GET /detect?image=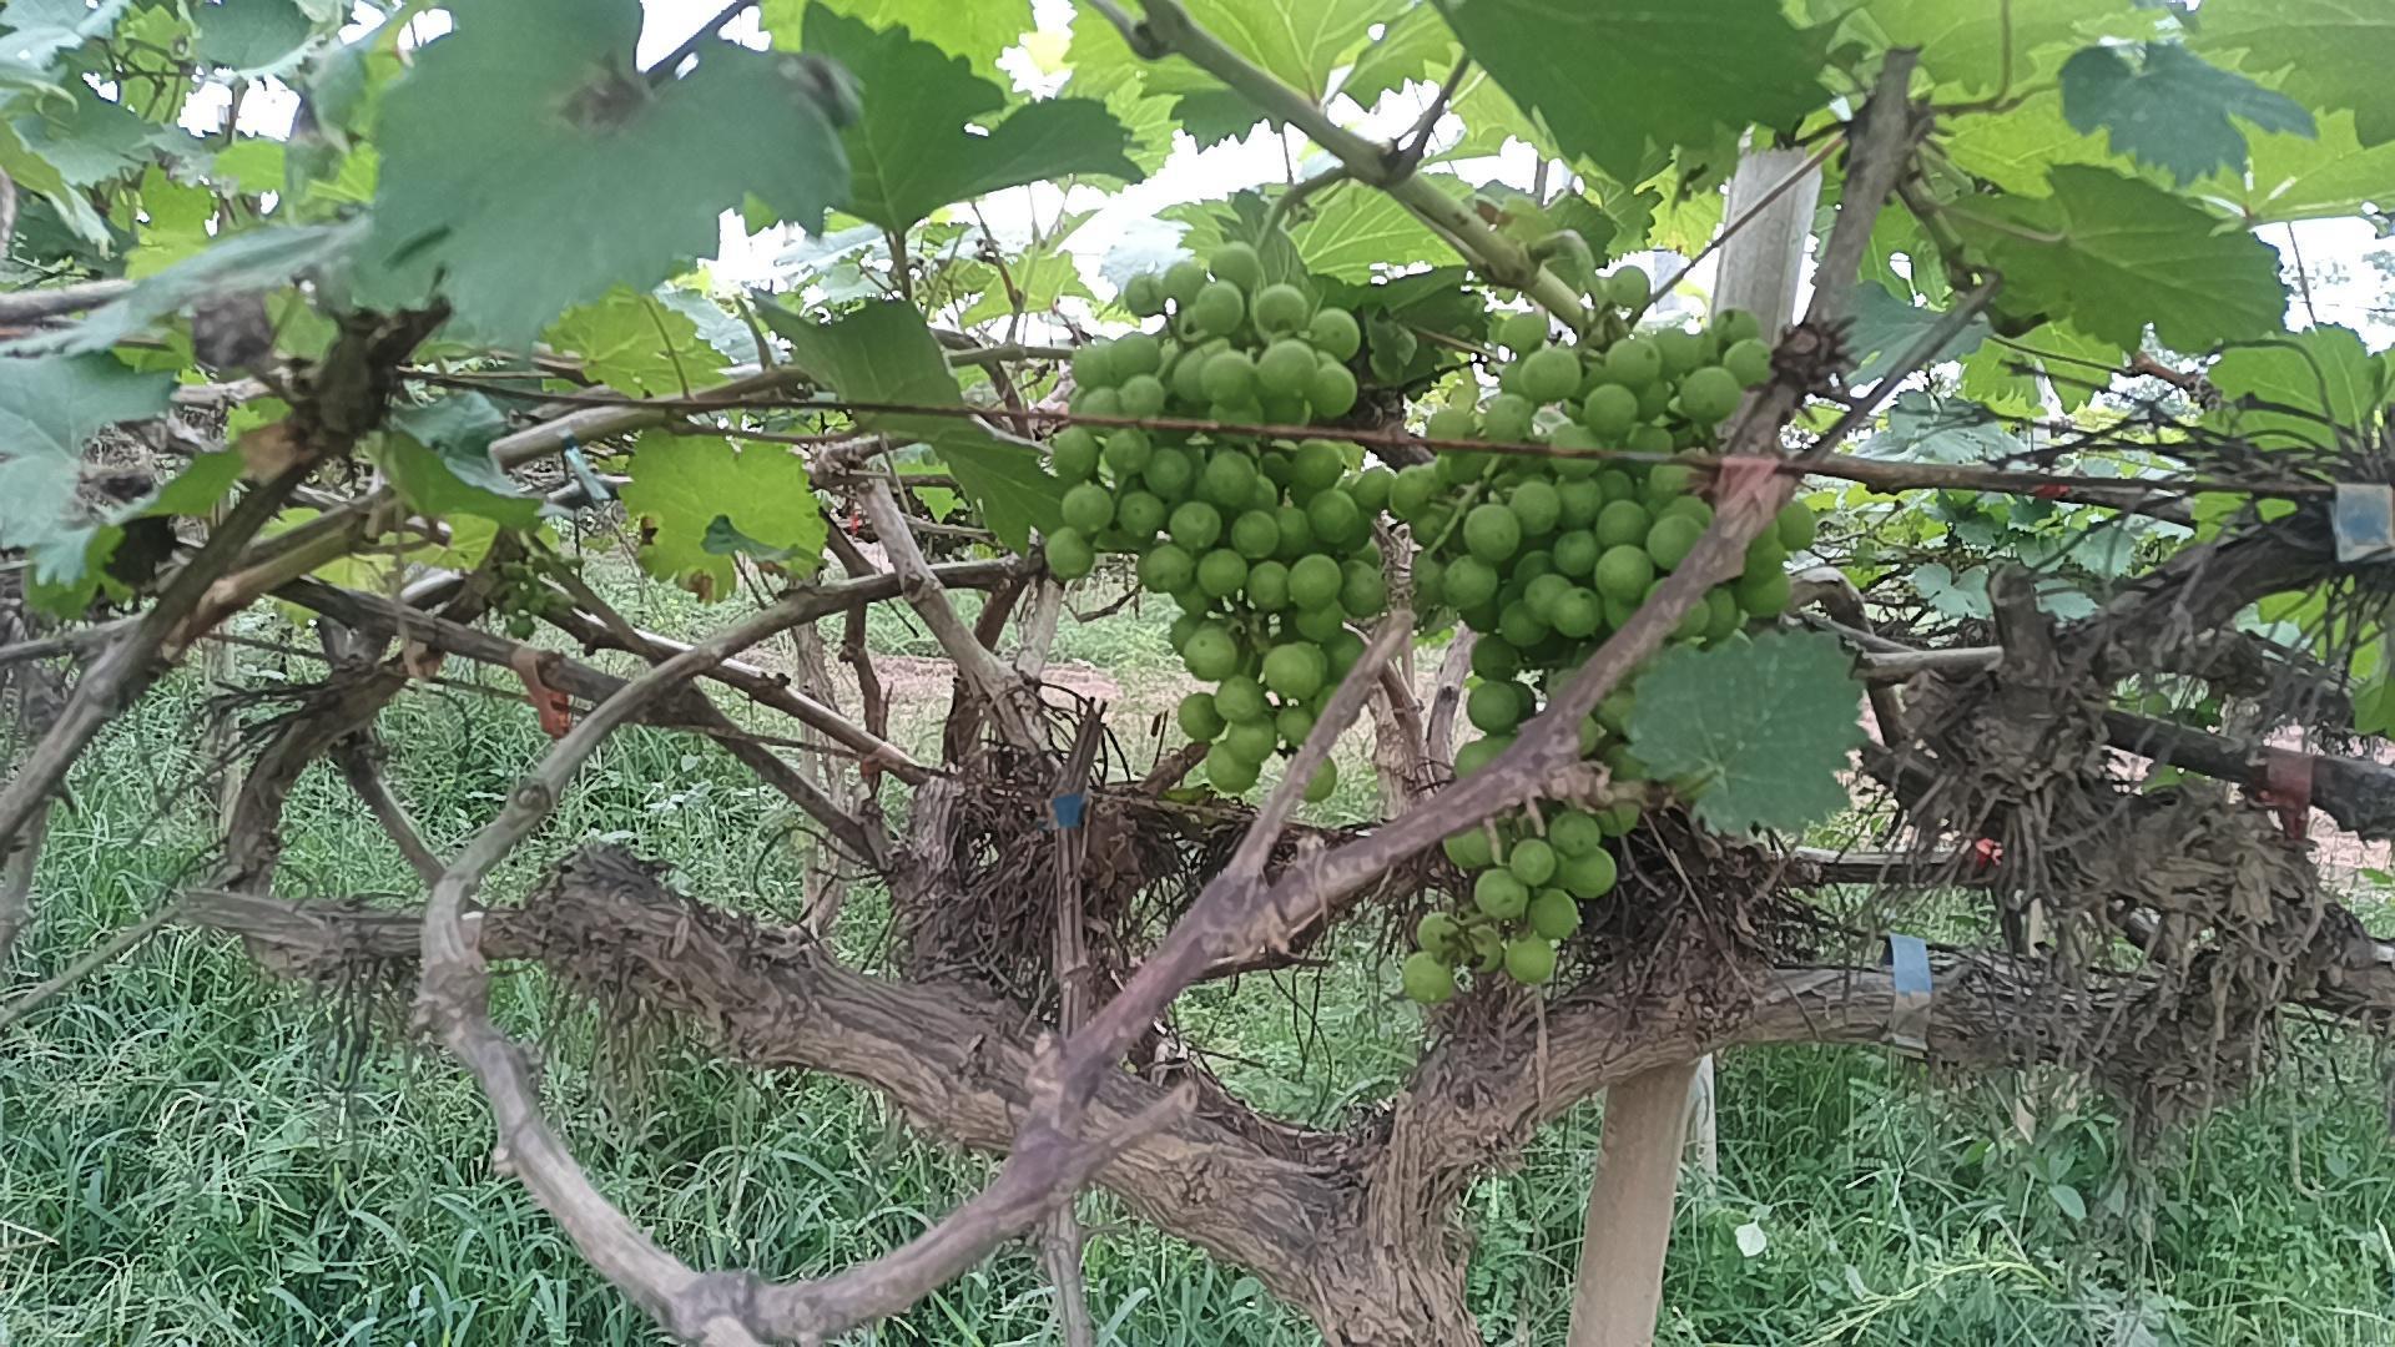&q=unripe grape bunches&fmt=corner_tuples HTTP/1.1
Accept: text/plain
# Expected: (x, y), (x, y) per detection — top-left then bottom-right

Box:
(504, 561), (551, 642)
(1353, 267), (1814, 1002)
(1047, 243), (1383, 801)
